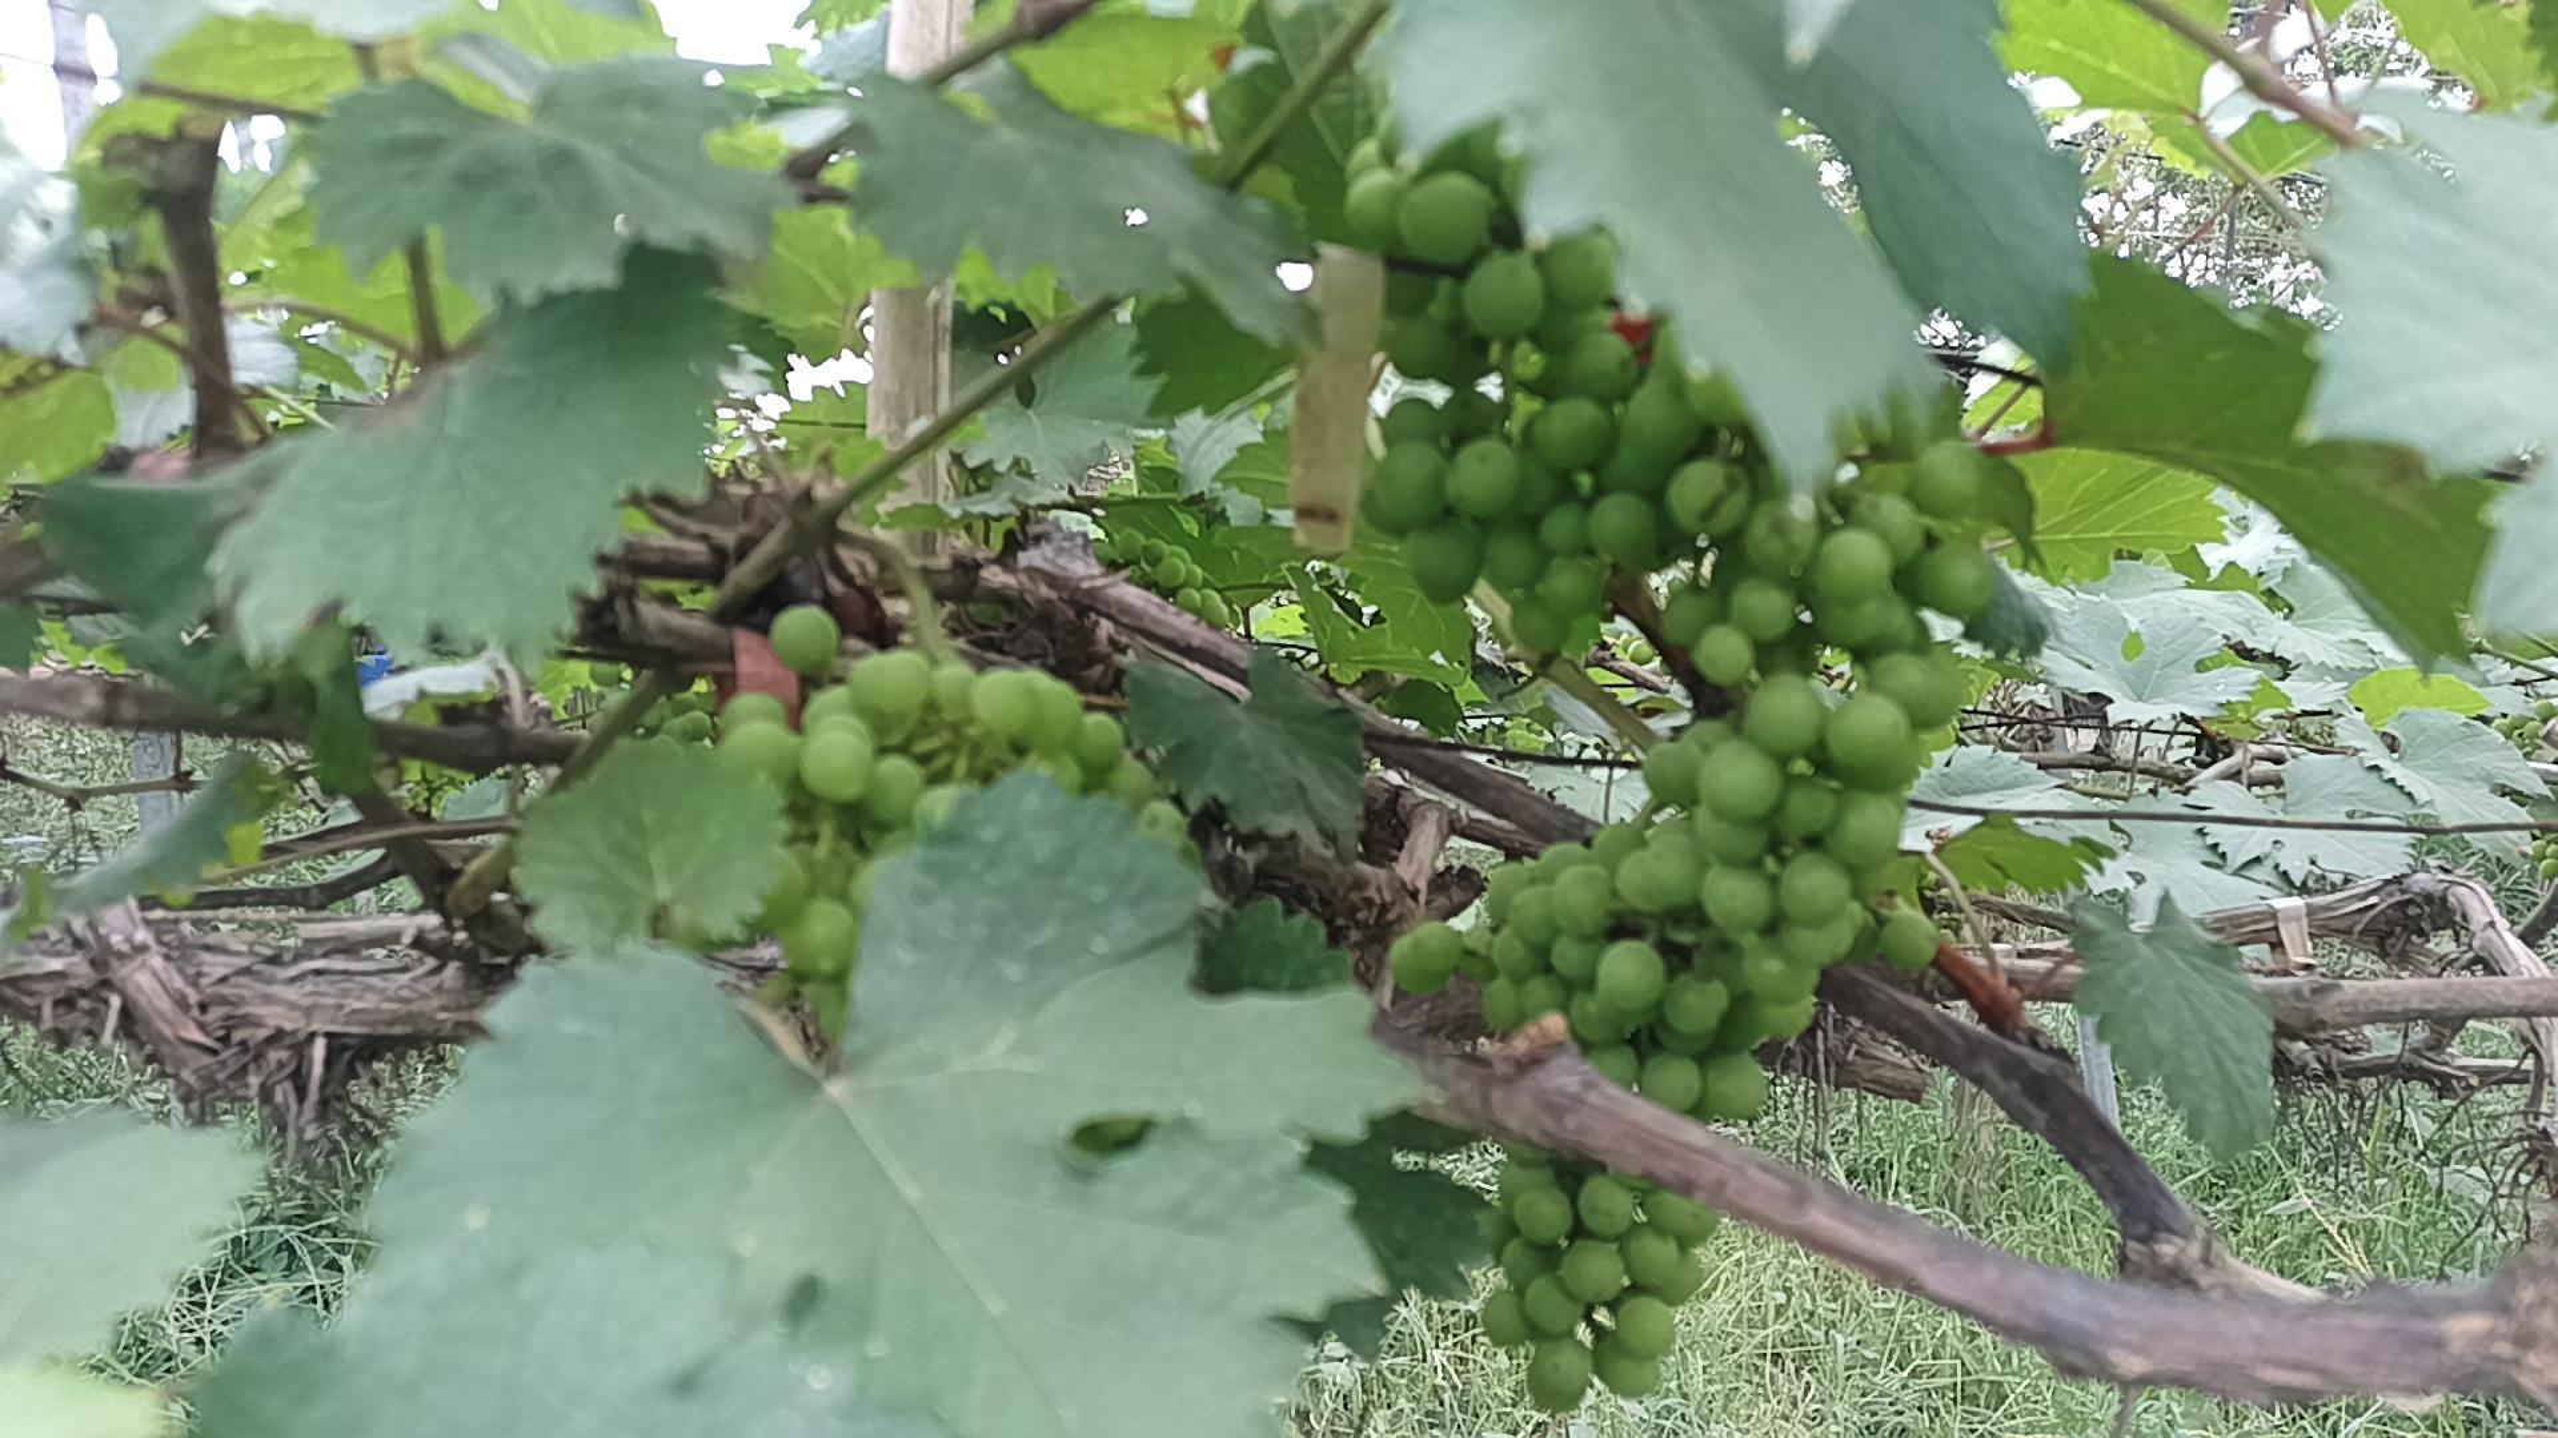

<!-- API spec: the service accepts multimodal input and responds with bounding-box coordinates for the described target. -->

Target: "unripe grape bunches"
[718,606,1188,1039]
[1348,138,1771,650]
[1388,441,2010,1410]
[1094,530,1242,628]
[585,662,714,740]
